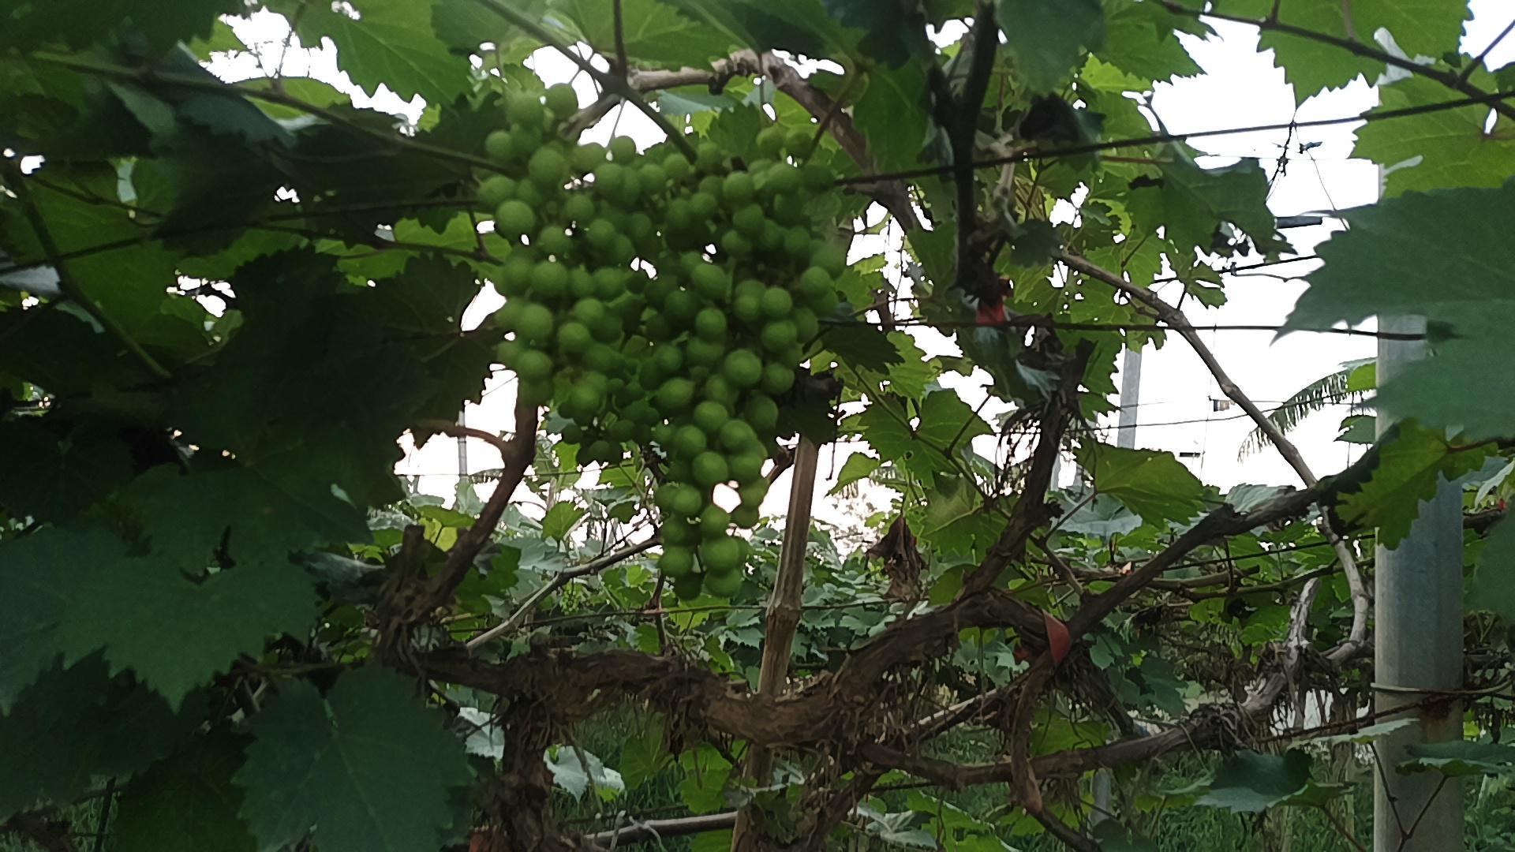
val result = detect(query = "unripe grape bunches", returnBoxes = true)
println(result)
[556,344,660,469]
[474,82,727,403]
[638,126,846,600]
